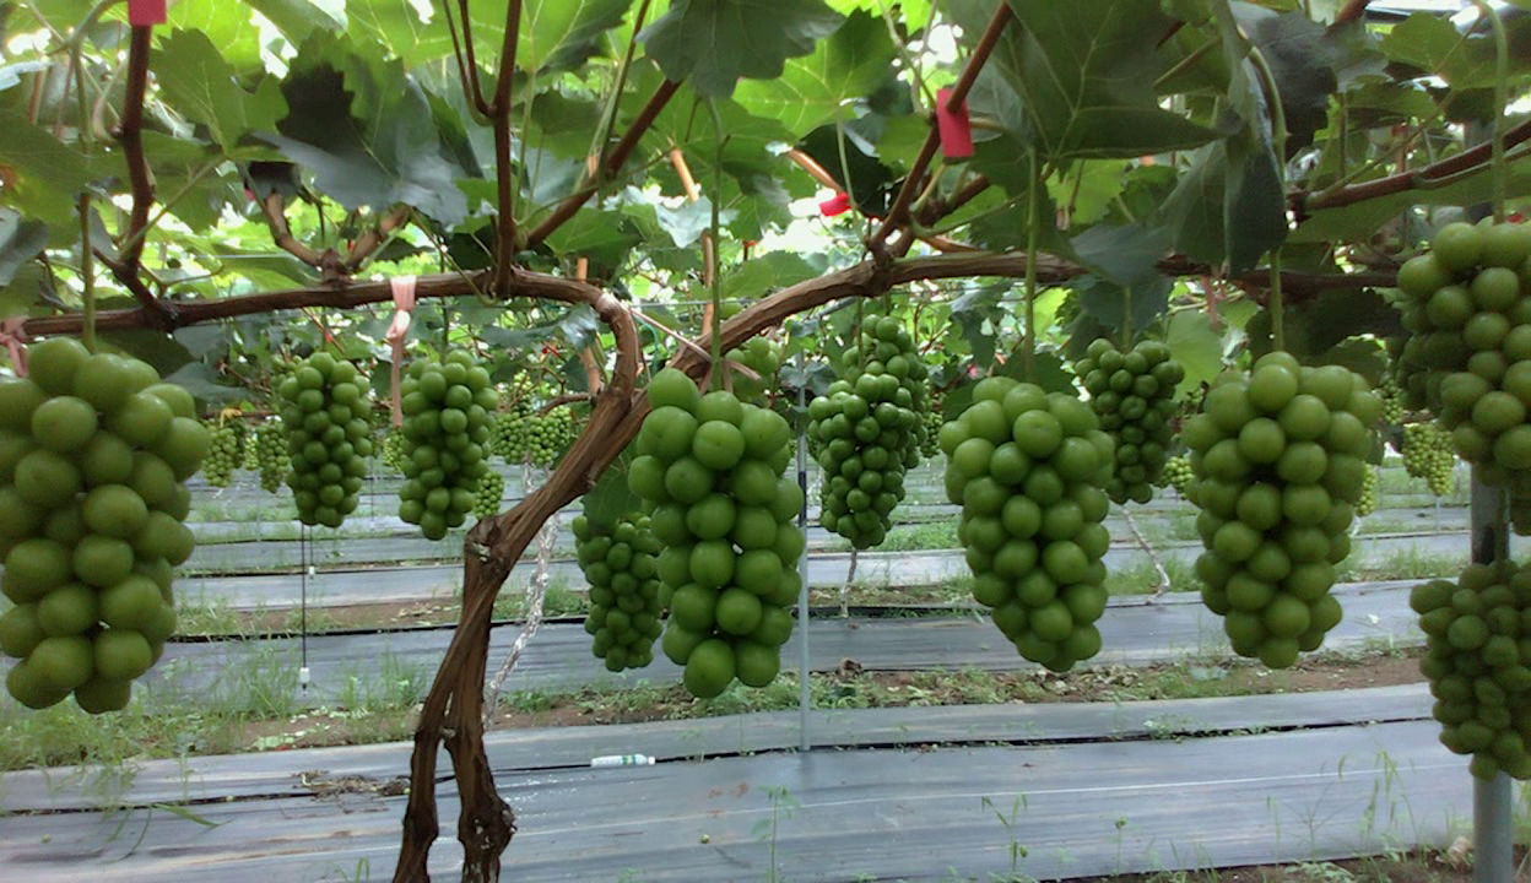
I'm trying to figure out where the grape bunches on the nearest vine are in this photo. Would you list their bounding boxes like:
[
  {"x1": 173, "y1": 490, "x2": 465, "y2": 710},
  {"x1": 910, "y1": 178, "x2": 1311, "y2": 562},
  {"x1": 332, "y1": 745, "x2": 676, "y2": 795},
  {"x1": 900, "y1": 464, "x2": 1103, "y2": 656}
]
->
[
  {"x1": 1408, "y1": 559, "x2": 1530, "y2": 782},
  {"x1": 1179, "y1": 351, "x2": 1385, "y2": 671},
  {"x1": 0, "y1": 336, "x2": 210, "y2": 715},
  {"x1": 1397, "y1": 216, "x2": 1529, "y2": 537},
  {"x1": 628, "y1": 368, "x2": 805, "y2": 699},
  {"x1": 938, "y1": 375, "x2": 1115, "y2": 673}
]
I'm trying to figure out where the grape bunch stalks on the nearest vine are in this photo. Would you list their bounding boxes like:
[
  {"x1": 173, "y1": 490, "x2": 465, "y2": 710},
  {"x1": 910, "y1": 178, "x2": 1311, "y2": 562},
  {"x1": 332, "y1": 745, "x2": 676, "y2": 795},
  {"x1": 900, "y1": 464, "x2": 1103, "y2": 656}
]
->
[
  {"x1": 702, "y1": 97, "x2": 729, "y2": 391},
  {"x1": 1270, "y1": 254, "x2": 1286, "y2": 351},
  {"x1": 81, "y1": 193, "x2": 97, "y2": 354},
  {"x1": 969, "y1": 118, "x2": 1042, "y2": 385},
  {"x1": 1493, "y1": 489, "x2": 1508, "y2": 584},
  {"x1": 1483, "y1": 10, "x2": 1508, "y2": 223}
]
